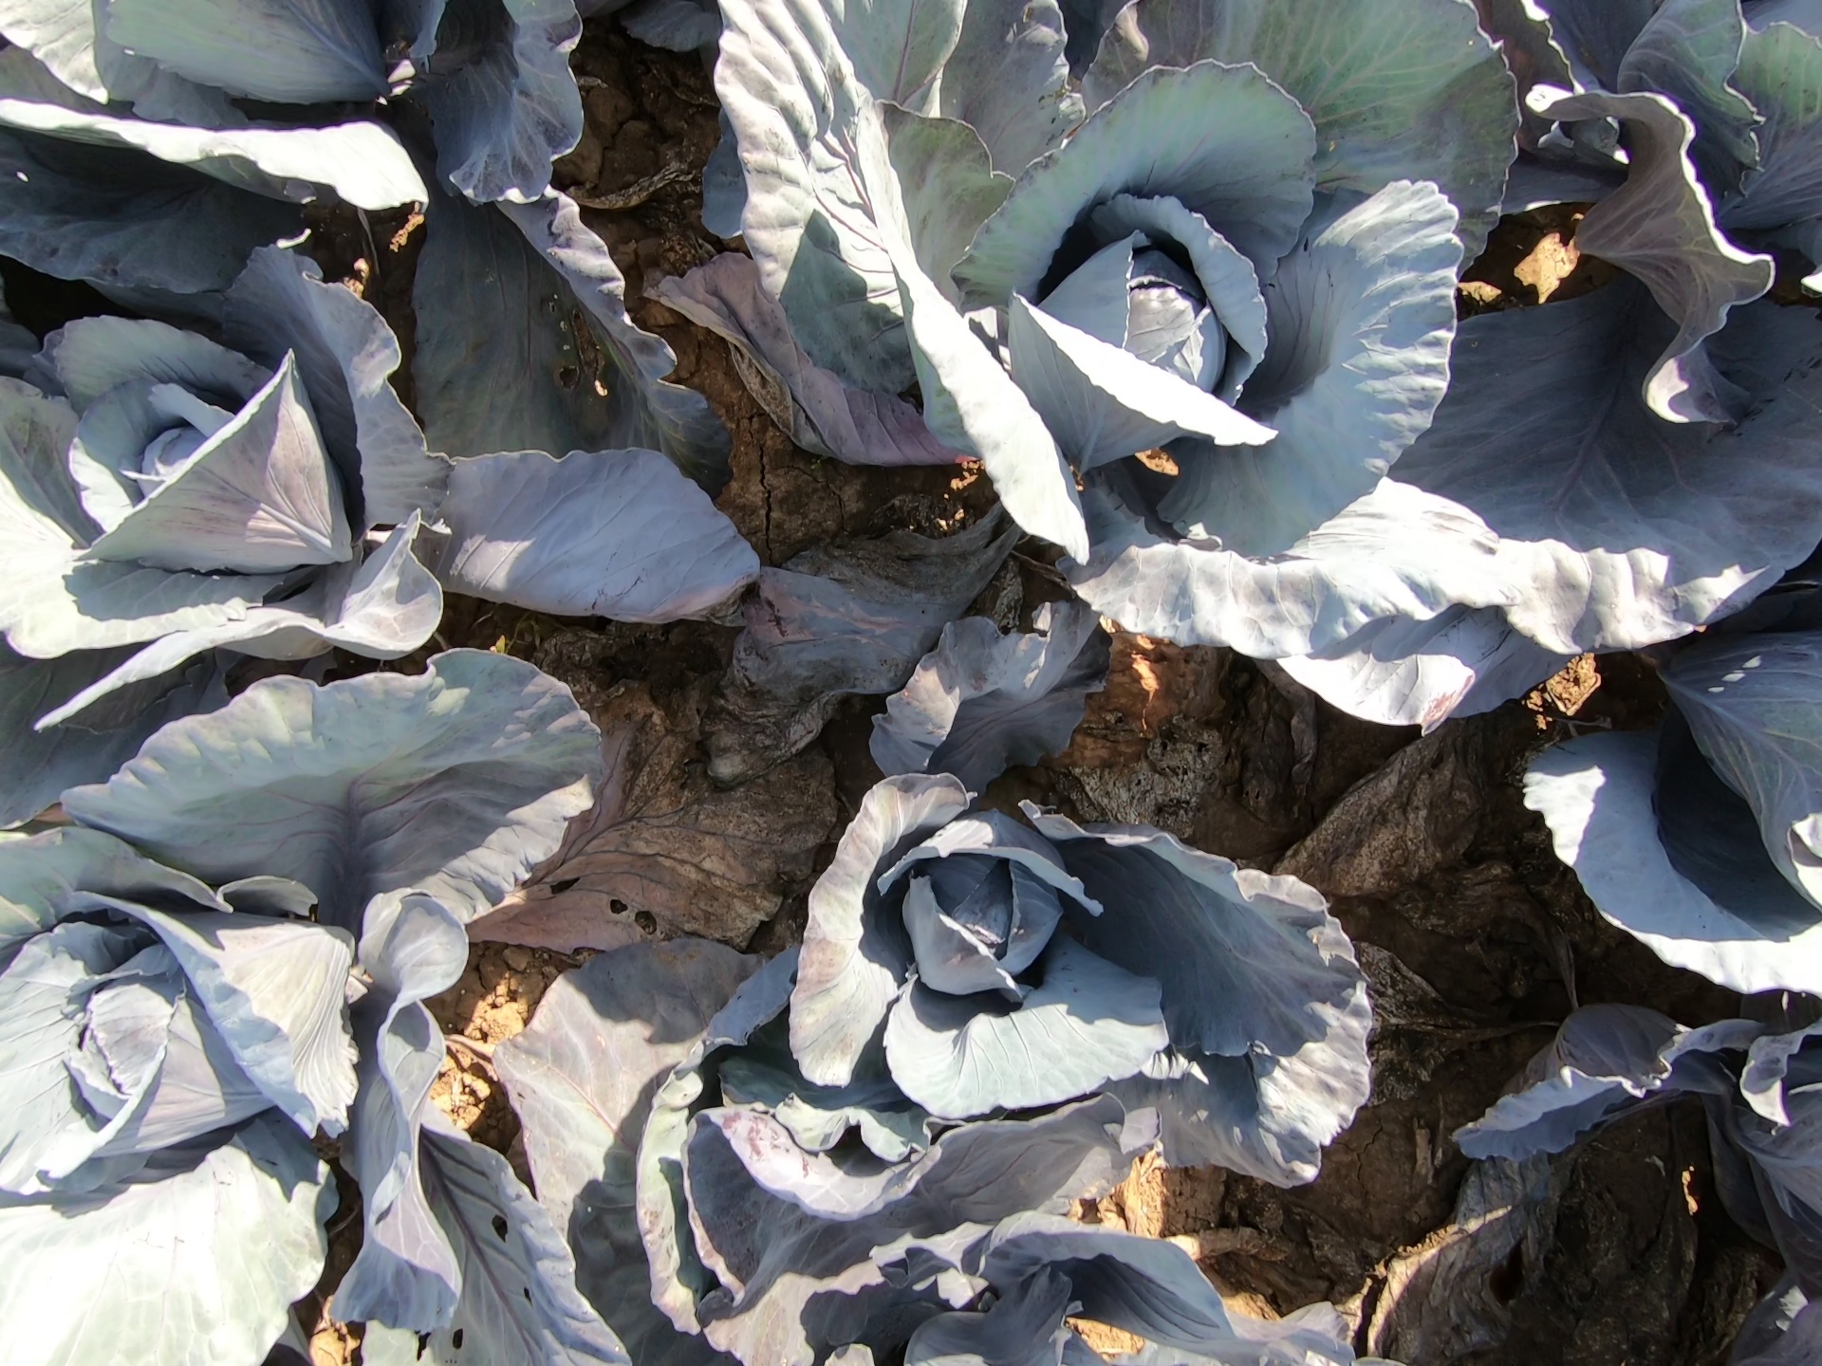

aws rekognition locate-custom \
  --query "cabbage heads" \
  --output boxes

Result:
[908,834,1060,992]
[72,937,307,1129]
[1049,258,1216,436]
[141,423,280,523]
